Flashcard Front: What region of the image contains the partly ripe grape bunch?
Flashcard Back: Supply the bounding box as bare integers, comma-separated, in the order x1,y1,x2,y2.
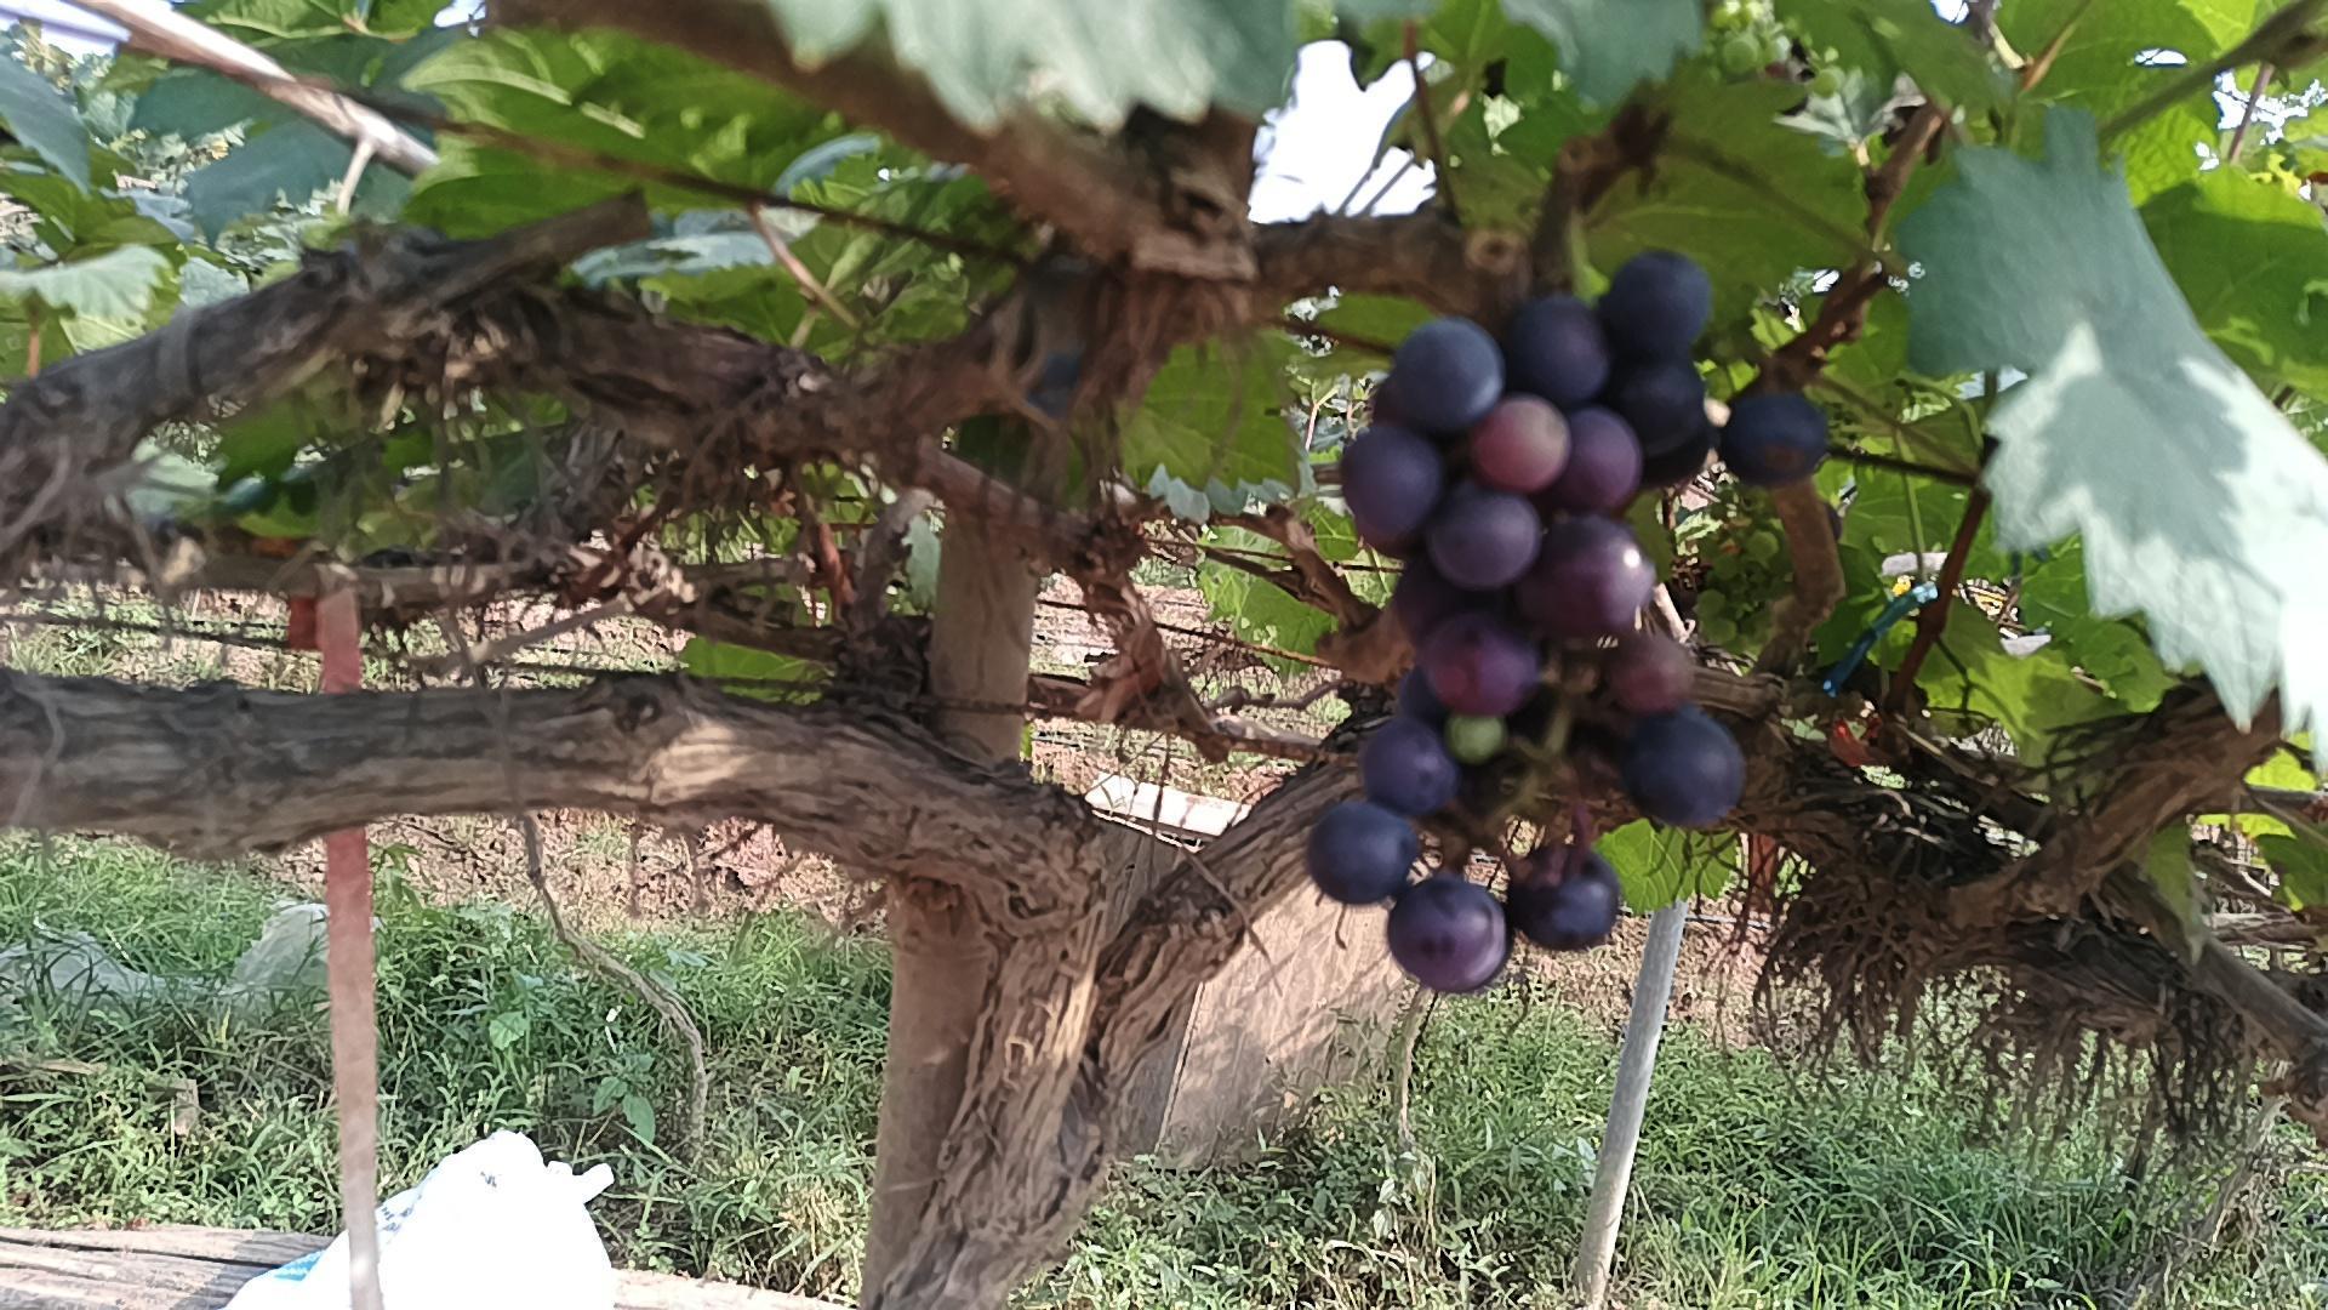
1307,250,1826,991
